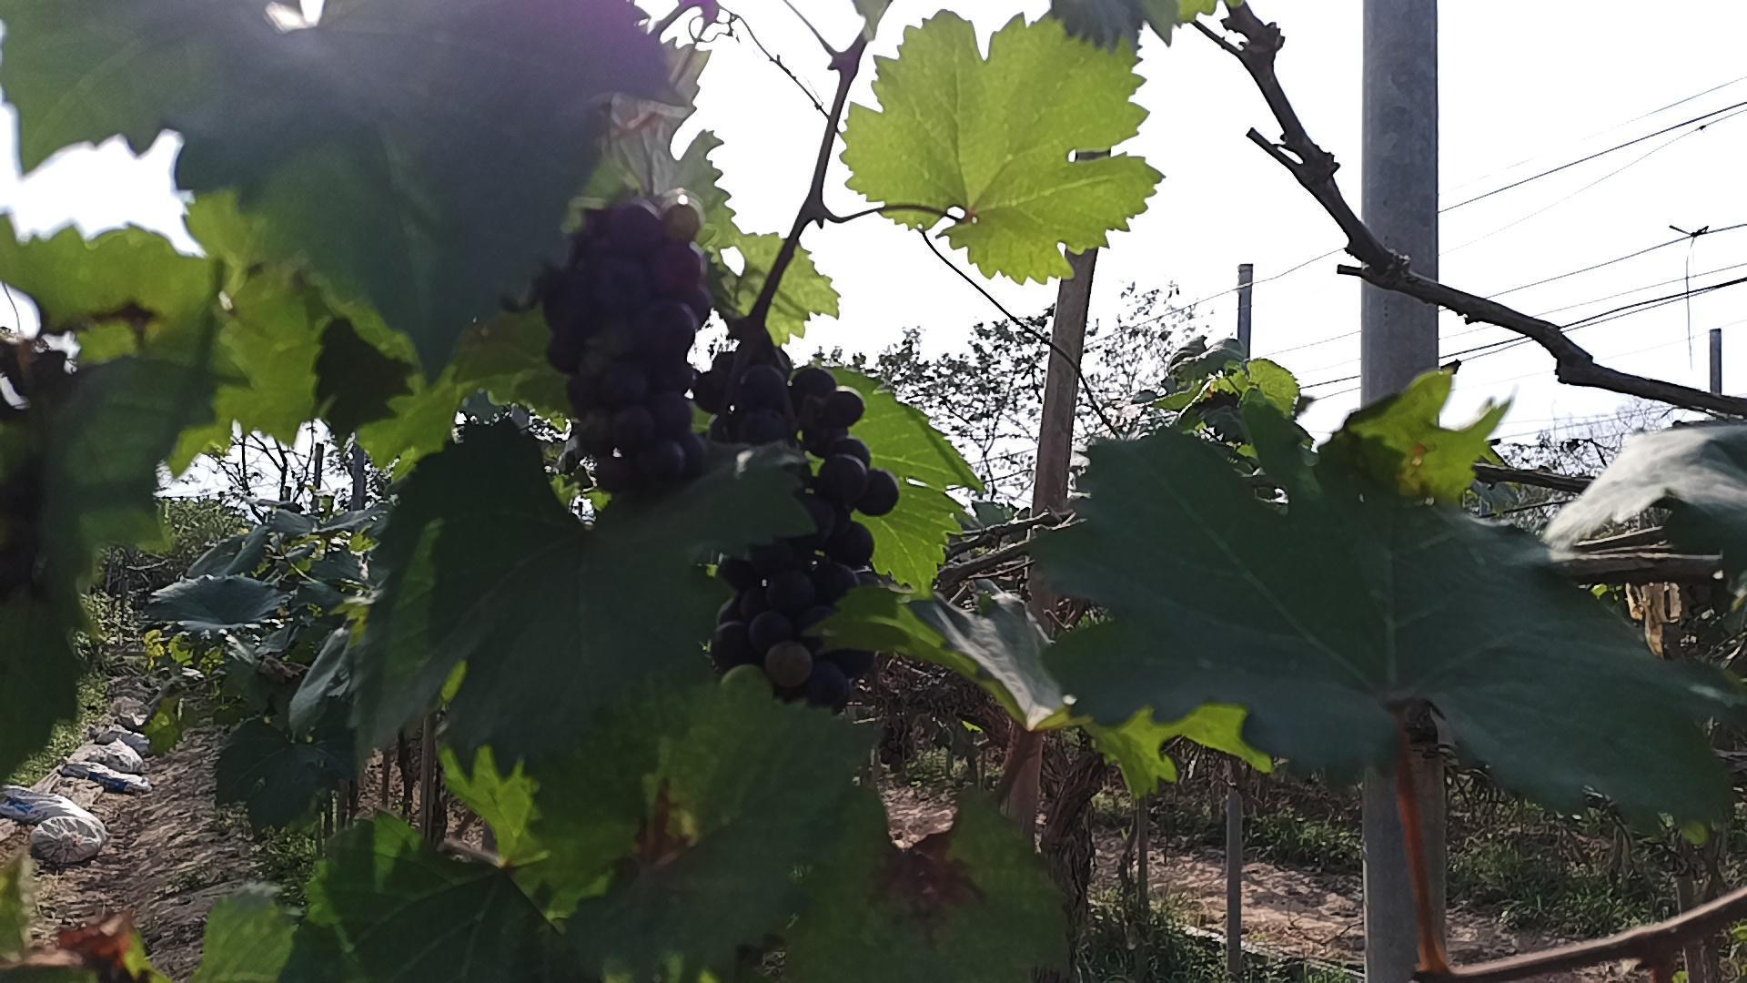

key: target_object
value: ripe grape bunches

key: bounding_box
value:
[697,339,899,712]
[535,200,712,496]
